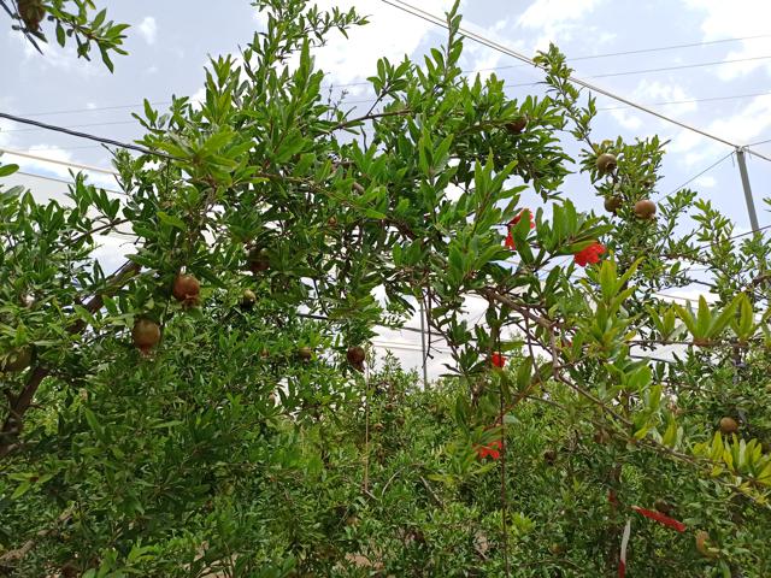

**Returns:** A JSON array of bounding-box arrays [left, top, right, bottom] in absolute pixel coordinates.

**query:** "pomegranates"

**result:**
[[131, 318, 161, 353], [596, 153, 618, 175], [605, 195, 623, 216], [248, 249, 269, 272], [719, 417, 738, 435], [18, 0, 46, 33], [171, 273, 201, 307], [4, 349, 31, 371], [505, 119, 528, 135], [634, 199, 661, 224], [243, 289, 259, 303], [346, 346, 366, 371], [299, 347, 312, 364], [695, 531, 710, 555]]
